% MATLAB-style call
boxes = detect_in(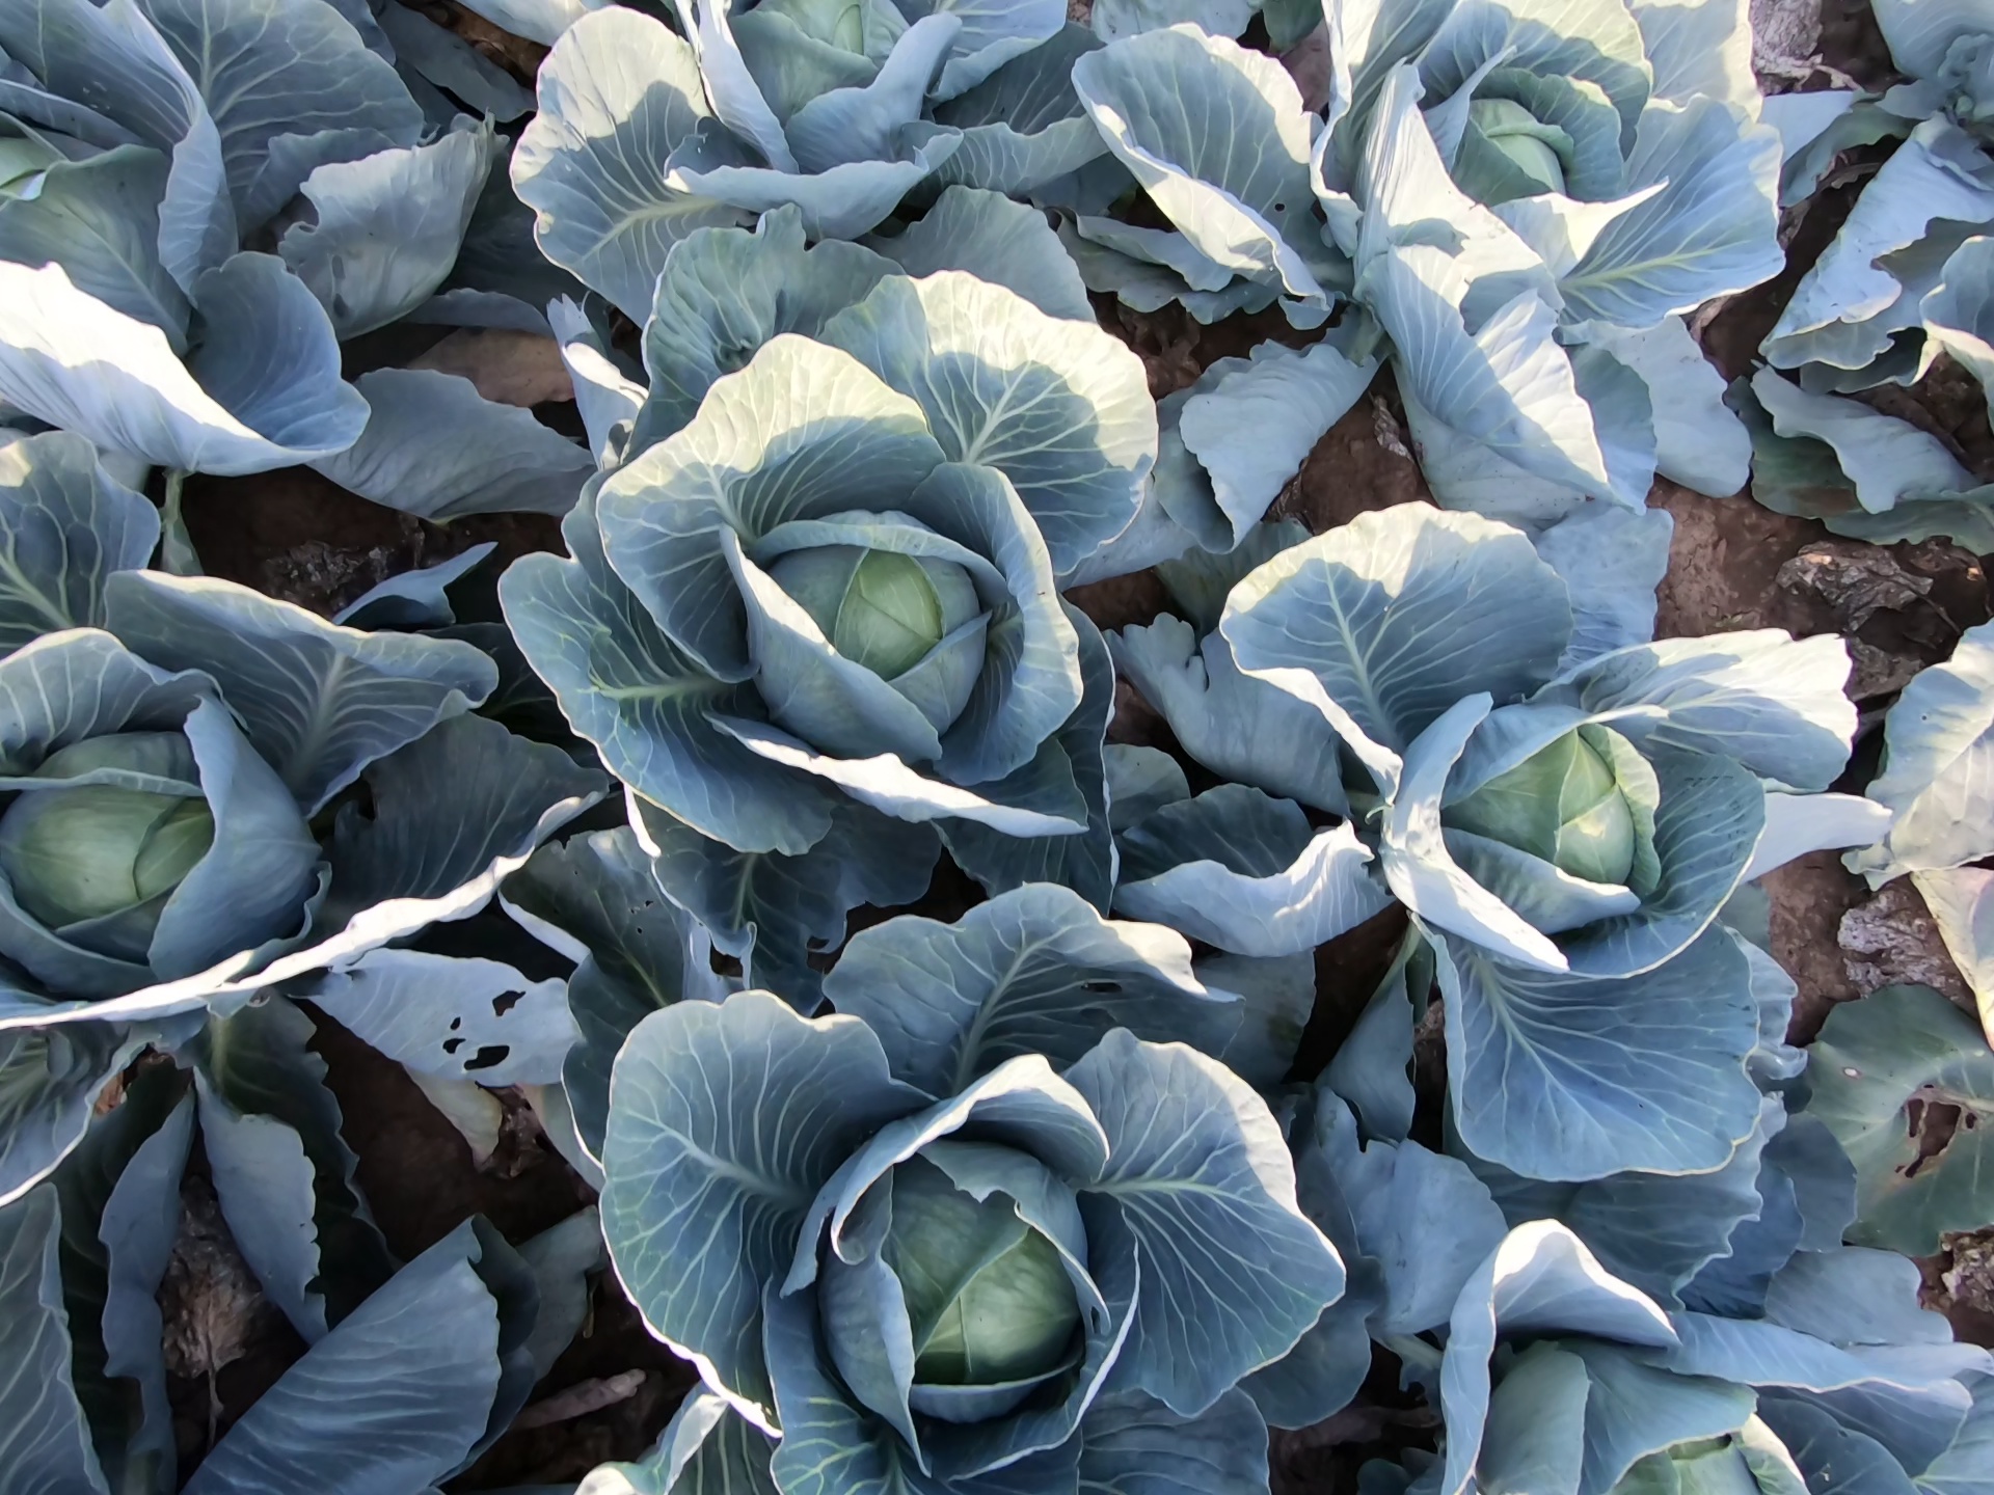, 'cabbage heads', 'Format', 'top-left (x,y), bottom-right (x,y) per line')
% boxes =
(5, 134), (164, 341)
(1433, 703), (1656, 923)
(1507, 1366), (1806, 1493)
(740, 2), (918, 129)
(1427, 89), (1572, 259)
(755, 520), (981, 750)
(842, 1151), (1098, 1413)
(3, 732), (302, 983)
